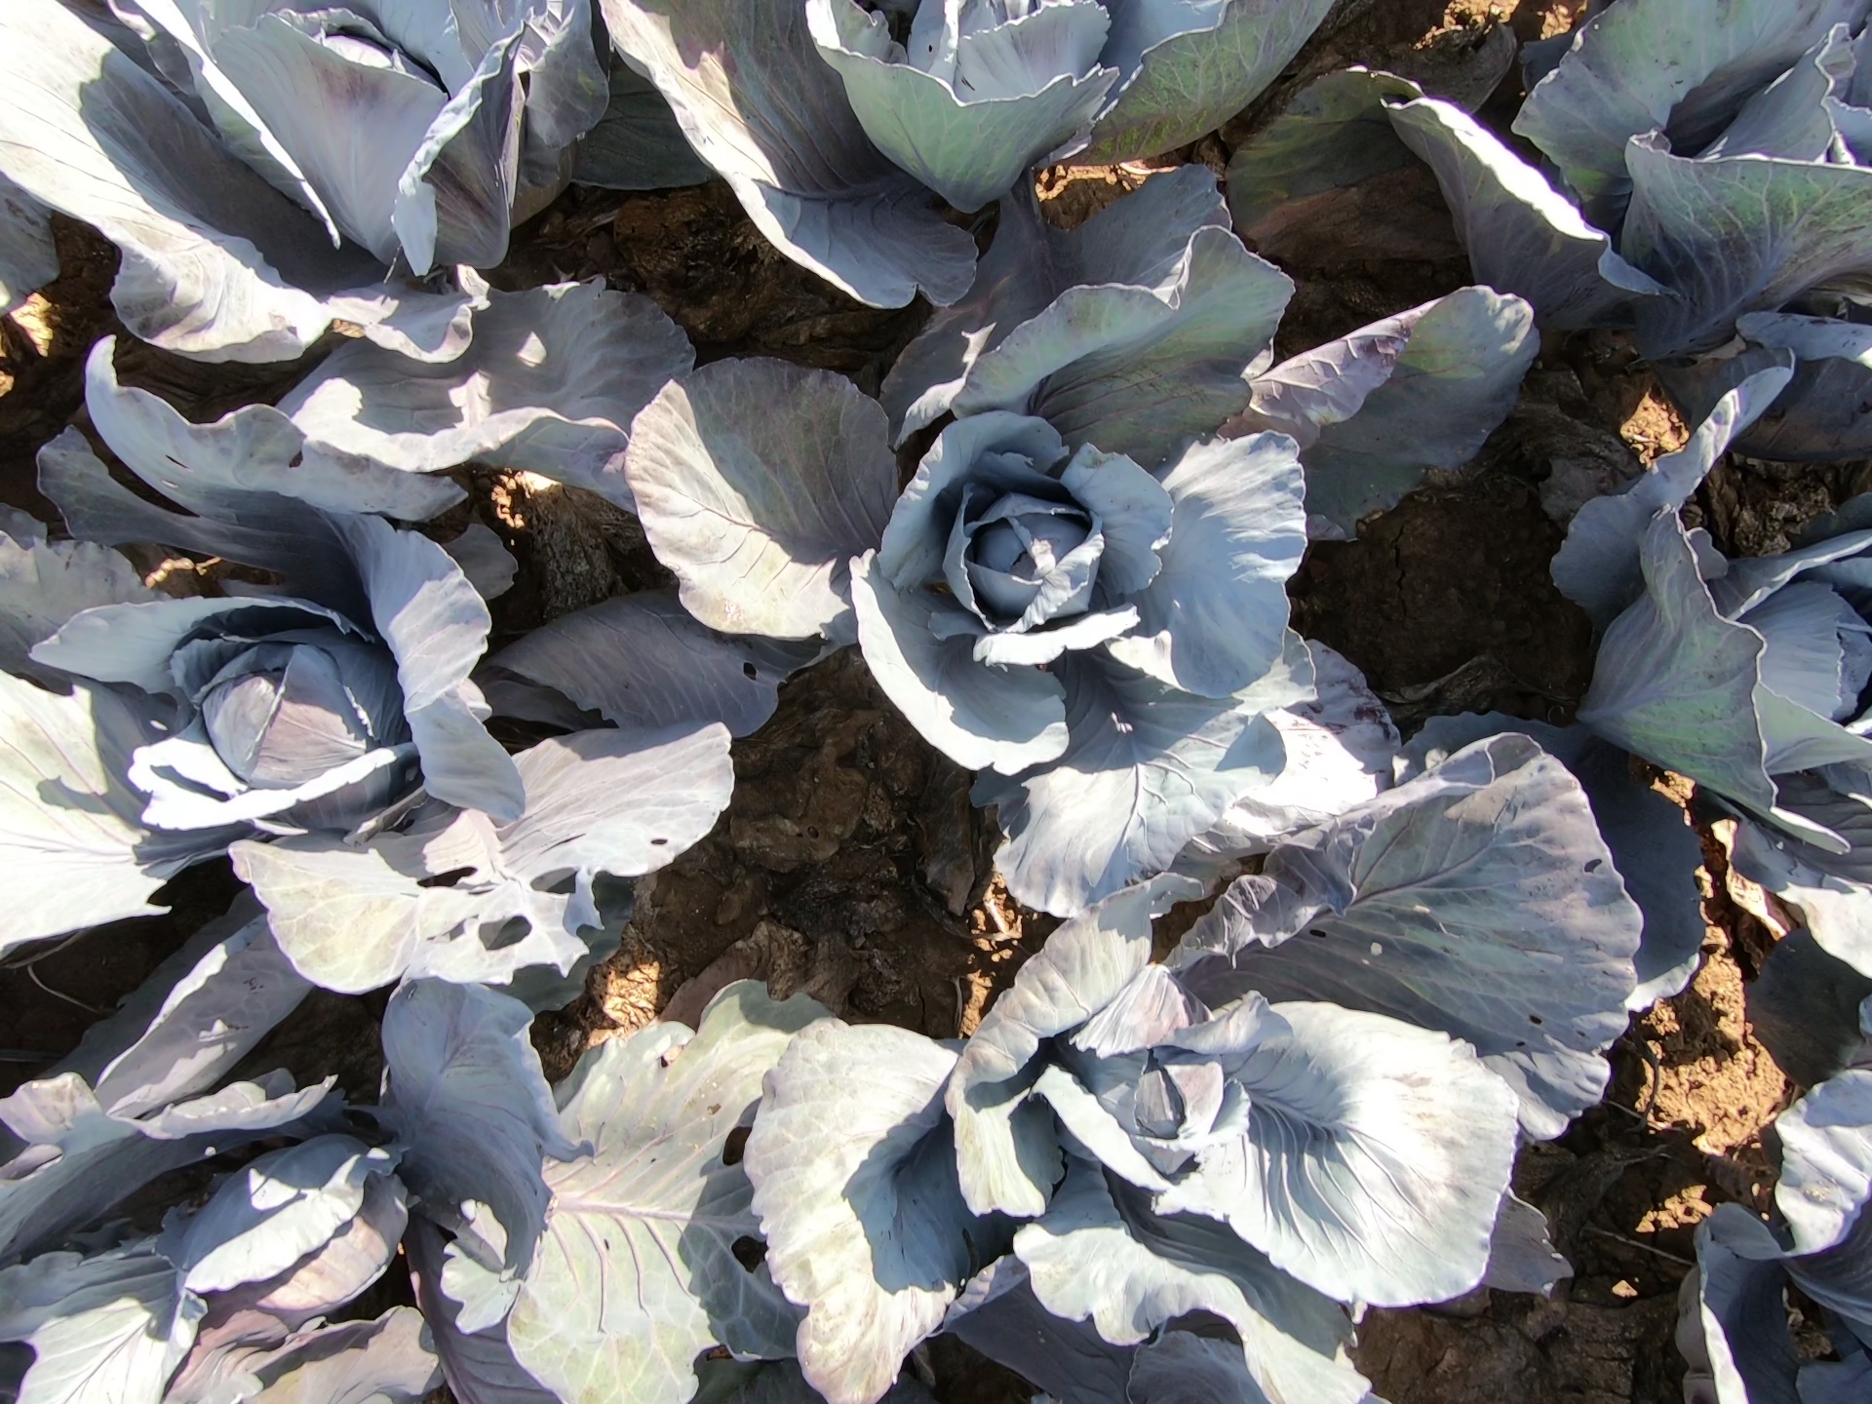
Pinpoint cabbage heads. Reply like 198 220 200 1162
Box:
971 495 1096 607
1100 1006 1228 1169
1683 123 1850 266
284 26 450 228
196 629 404 793
1734 578 1870 719
924 5 1071 112
173 1149 404 1314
